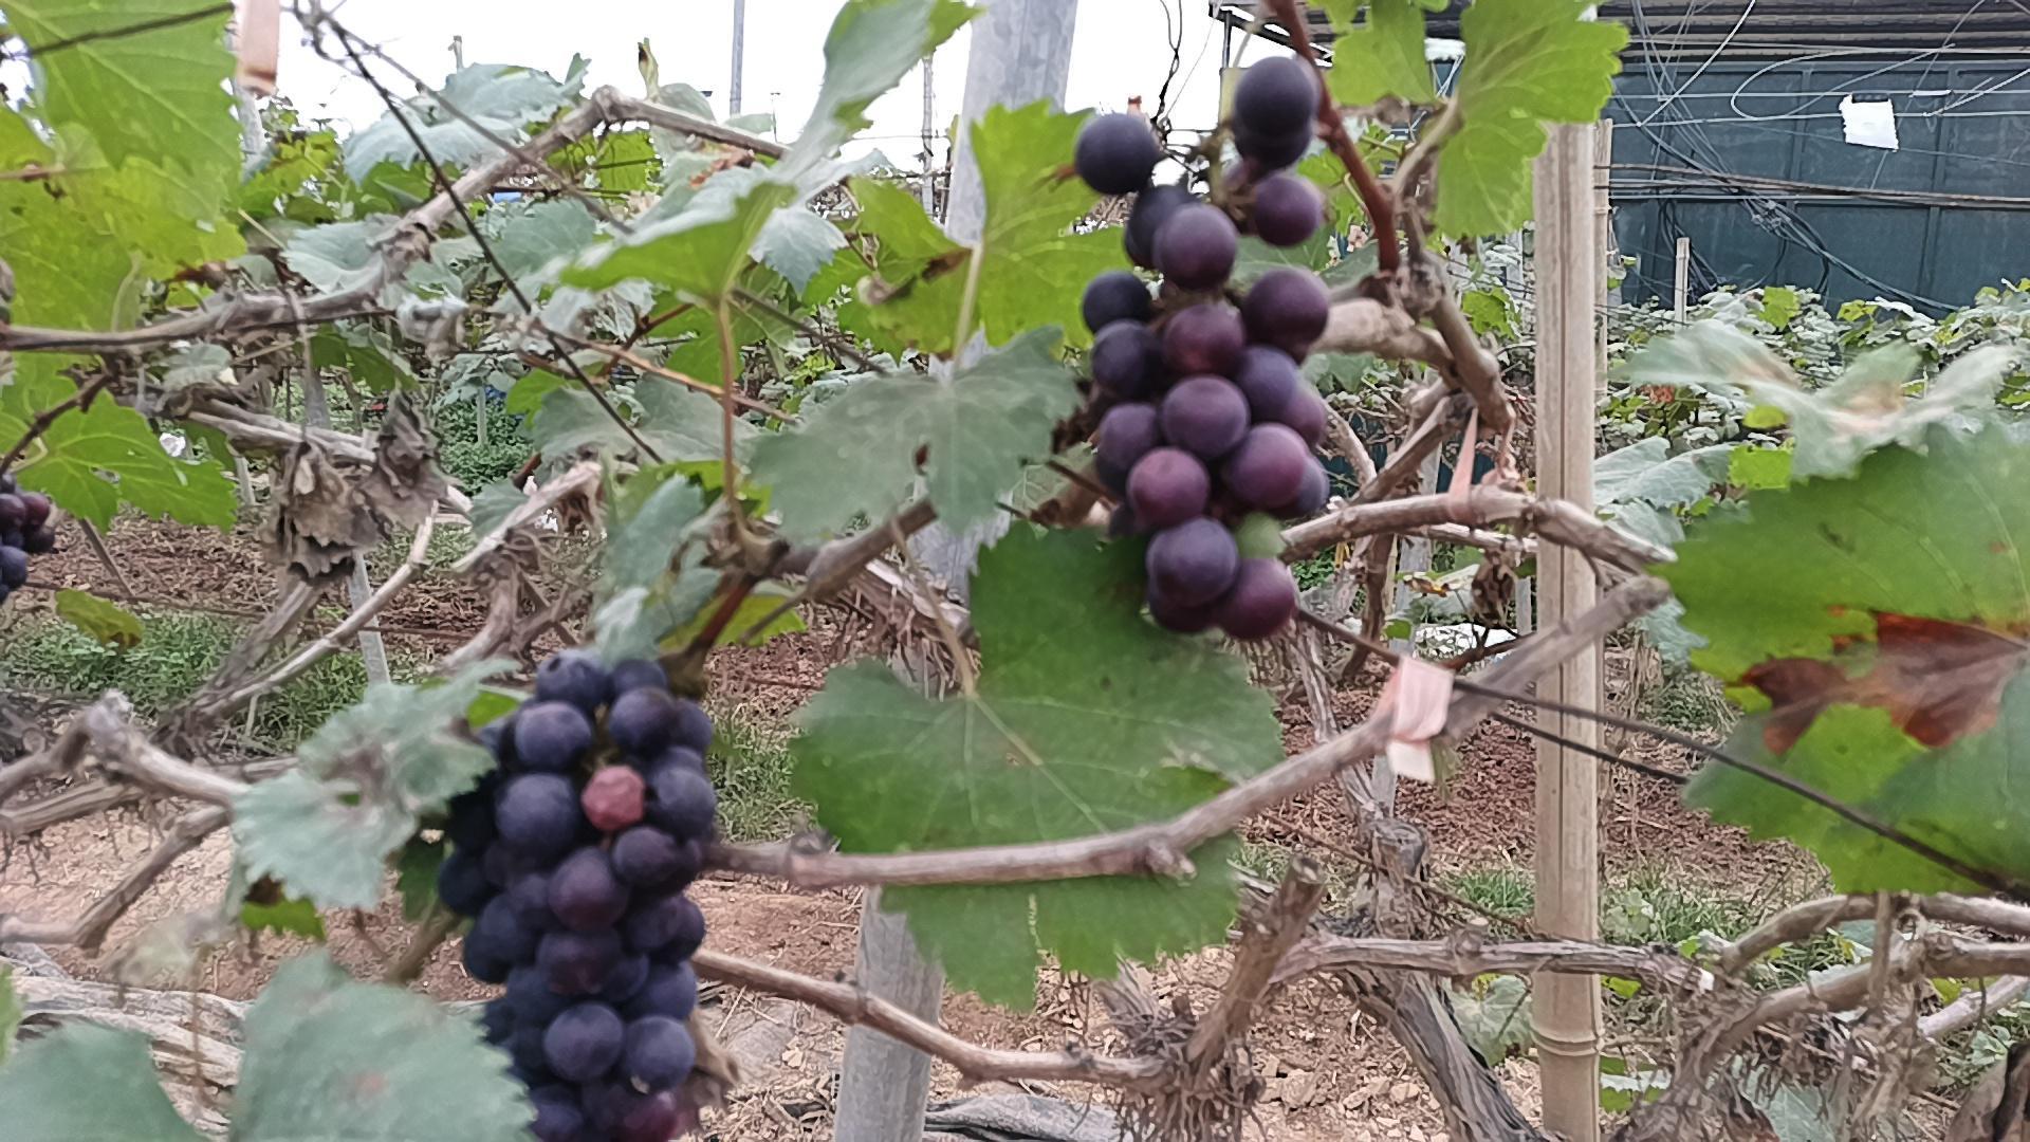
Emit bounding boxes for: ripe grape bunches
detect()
[0,462,59,605]
[438,651,715,1141]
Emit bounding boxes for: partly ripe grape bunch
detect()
[1076,57,1330,639]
